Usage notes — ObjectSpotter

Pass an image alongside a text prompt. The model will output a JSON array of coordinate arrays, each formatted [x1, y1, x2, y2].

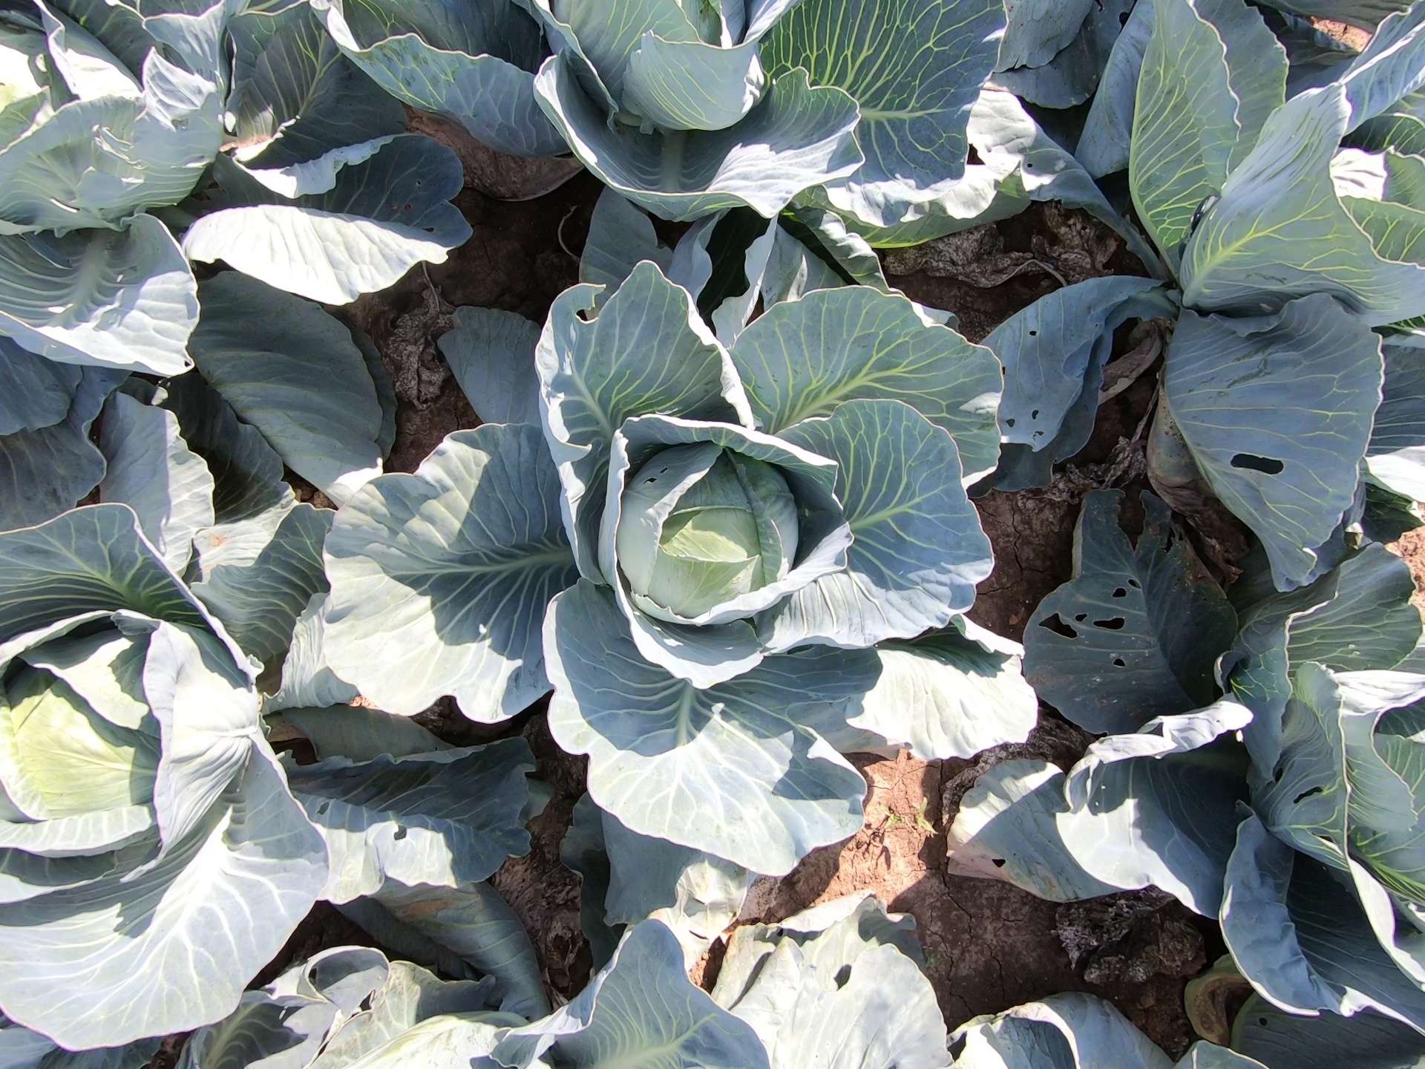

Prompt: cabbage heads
[[560, 0, 740, 97], [1252, 146, 1407, 280], [614, 442, 798, 627], [1, 630, 233, 828], [0, 24, 146, 202]]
